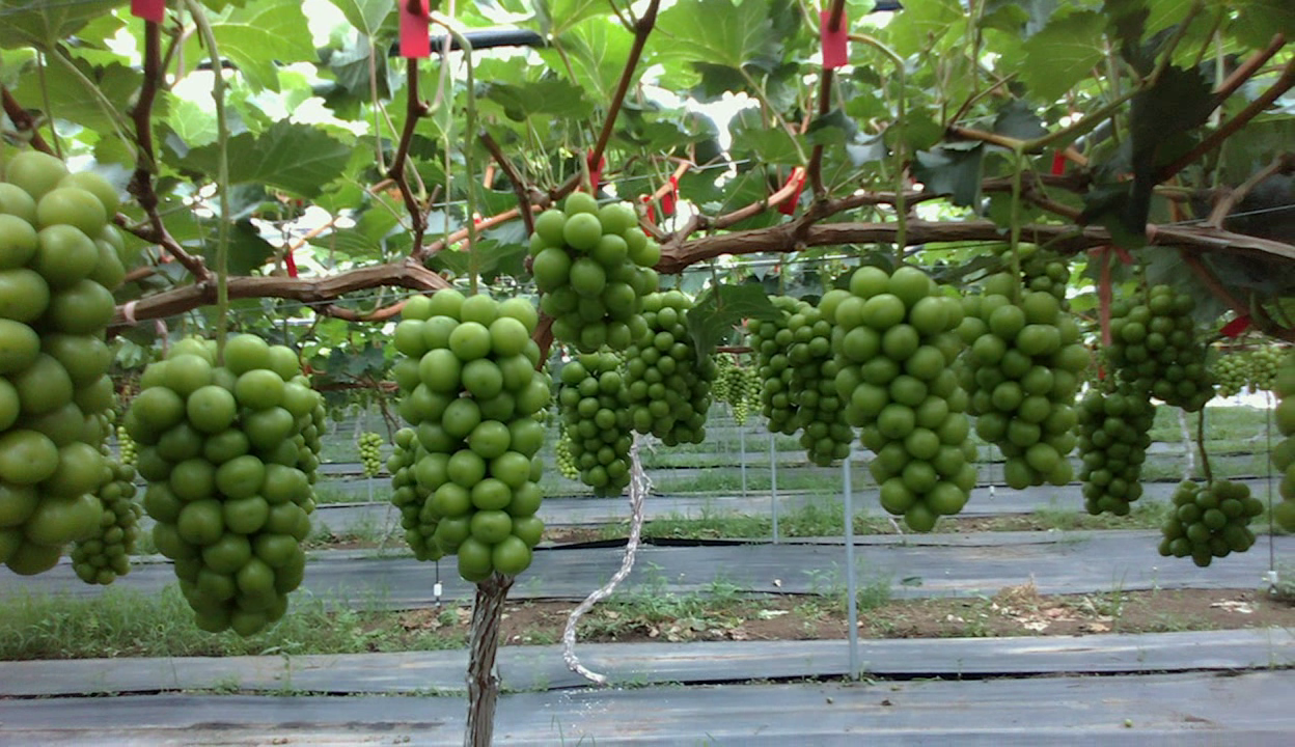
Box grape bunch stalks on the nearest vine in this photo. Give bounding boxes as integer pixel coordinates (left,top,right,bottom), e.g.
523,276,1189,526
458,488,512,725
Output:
848,34,906,270
575,147,593,196
185,0,232,366
429,15,478,296
955,125,1022,306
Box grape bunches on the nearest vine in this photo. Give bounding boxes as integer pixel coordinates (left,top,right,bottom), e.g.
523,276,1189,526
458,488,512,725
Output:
122,332,318,637
952,272,1091,490
392,288,551,581
528,192,660,350
819,265,979,532
1,150,126,576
